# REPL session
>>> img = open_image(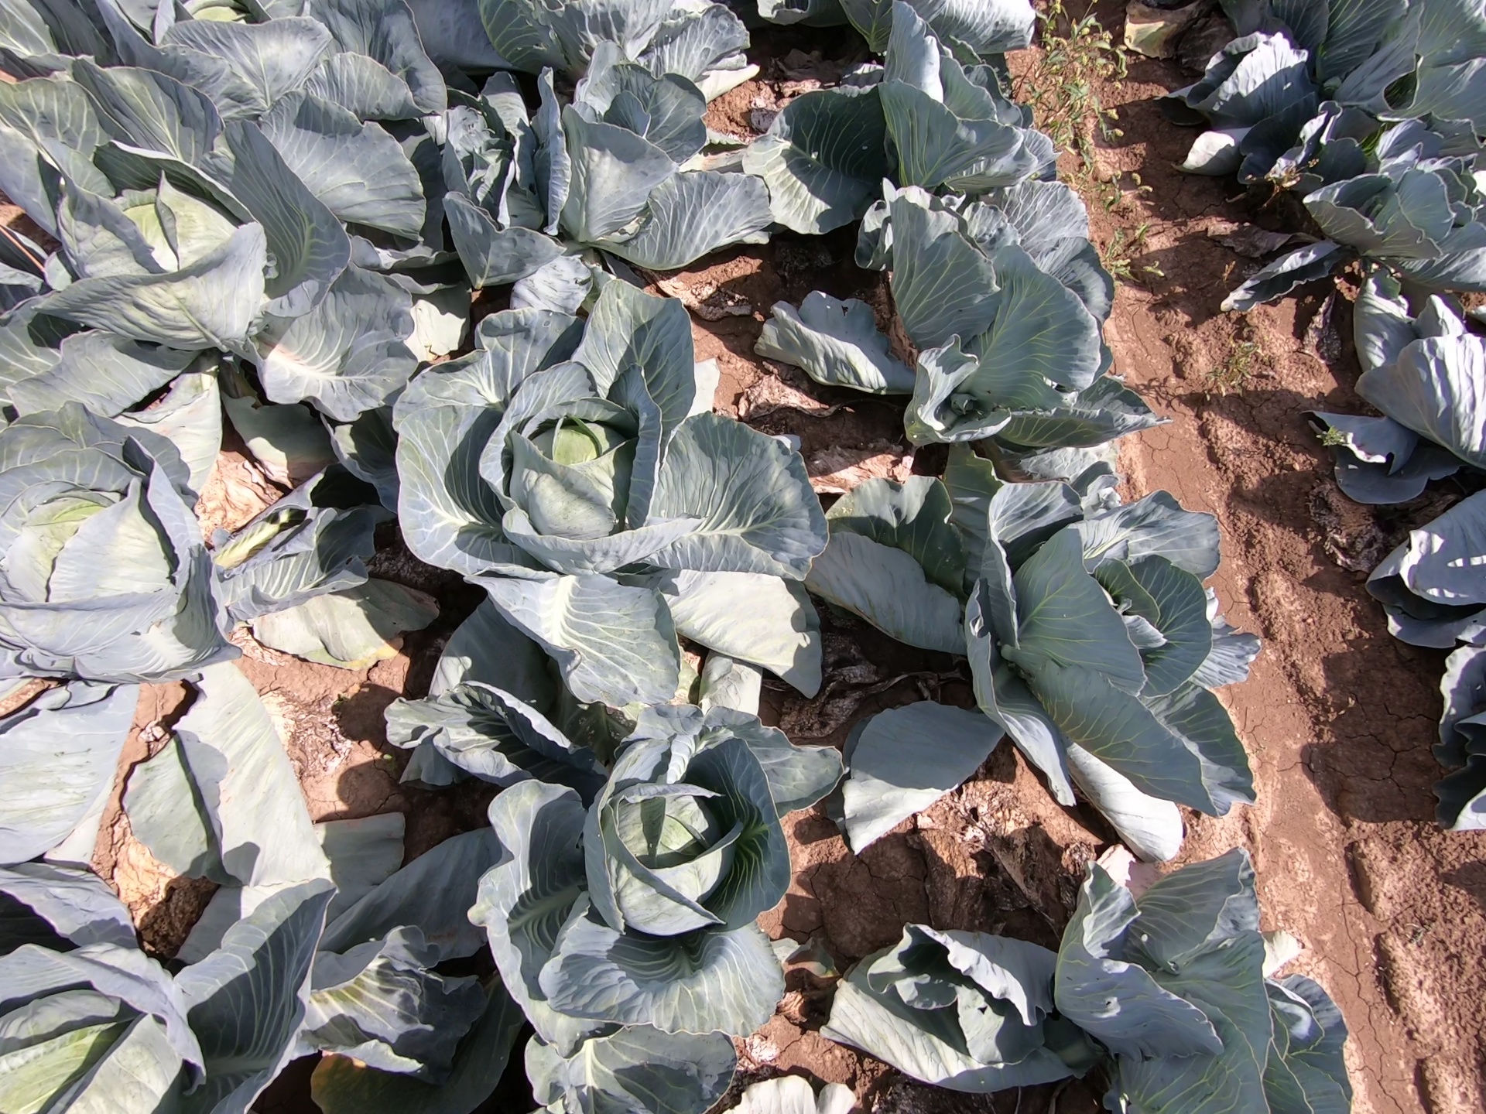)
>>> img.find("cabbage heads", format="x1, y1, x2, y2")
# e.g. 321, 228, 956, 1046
518, 415, 639, 537
179, 2, 279, 109
2, 986, 176, 1112
599, 785, 735, 923
87, 184, 257, 349
0, 473, 188, 634
1021, 576, 1118, 658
